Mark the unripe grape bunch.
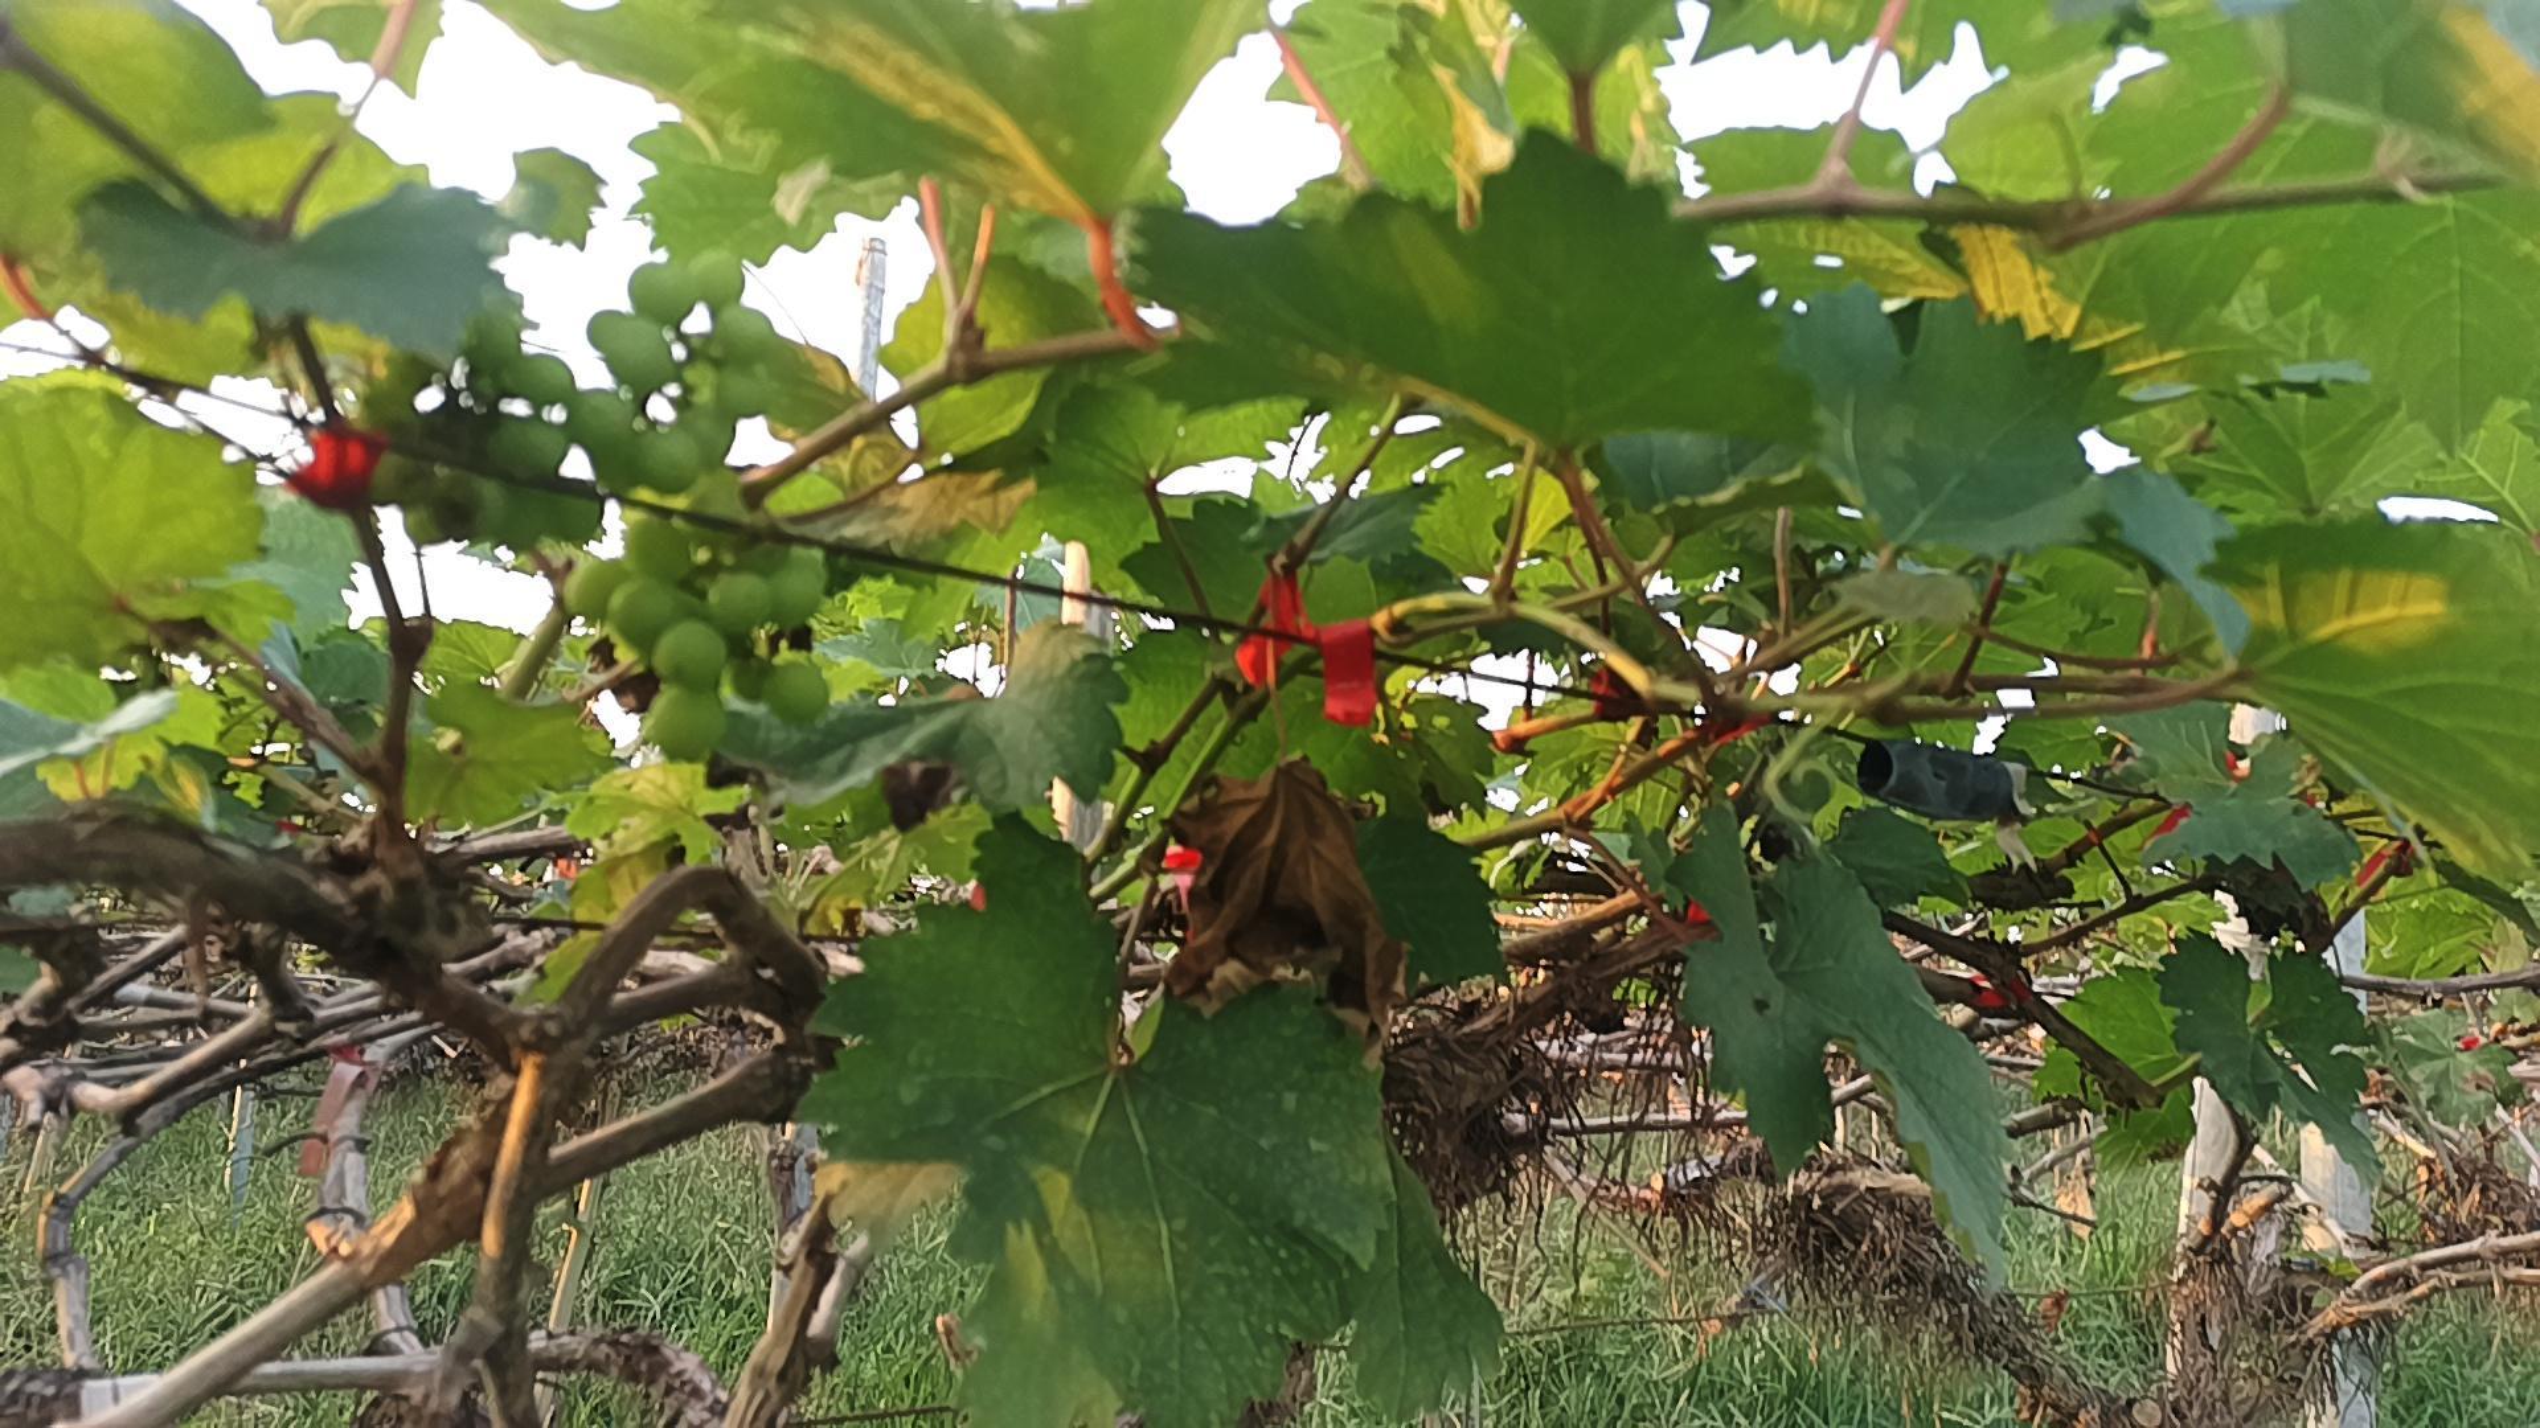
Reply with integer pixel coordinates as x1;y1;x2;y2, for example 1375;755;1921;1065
359;260;841;767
